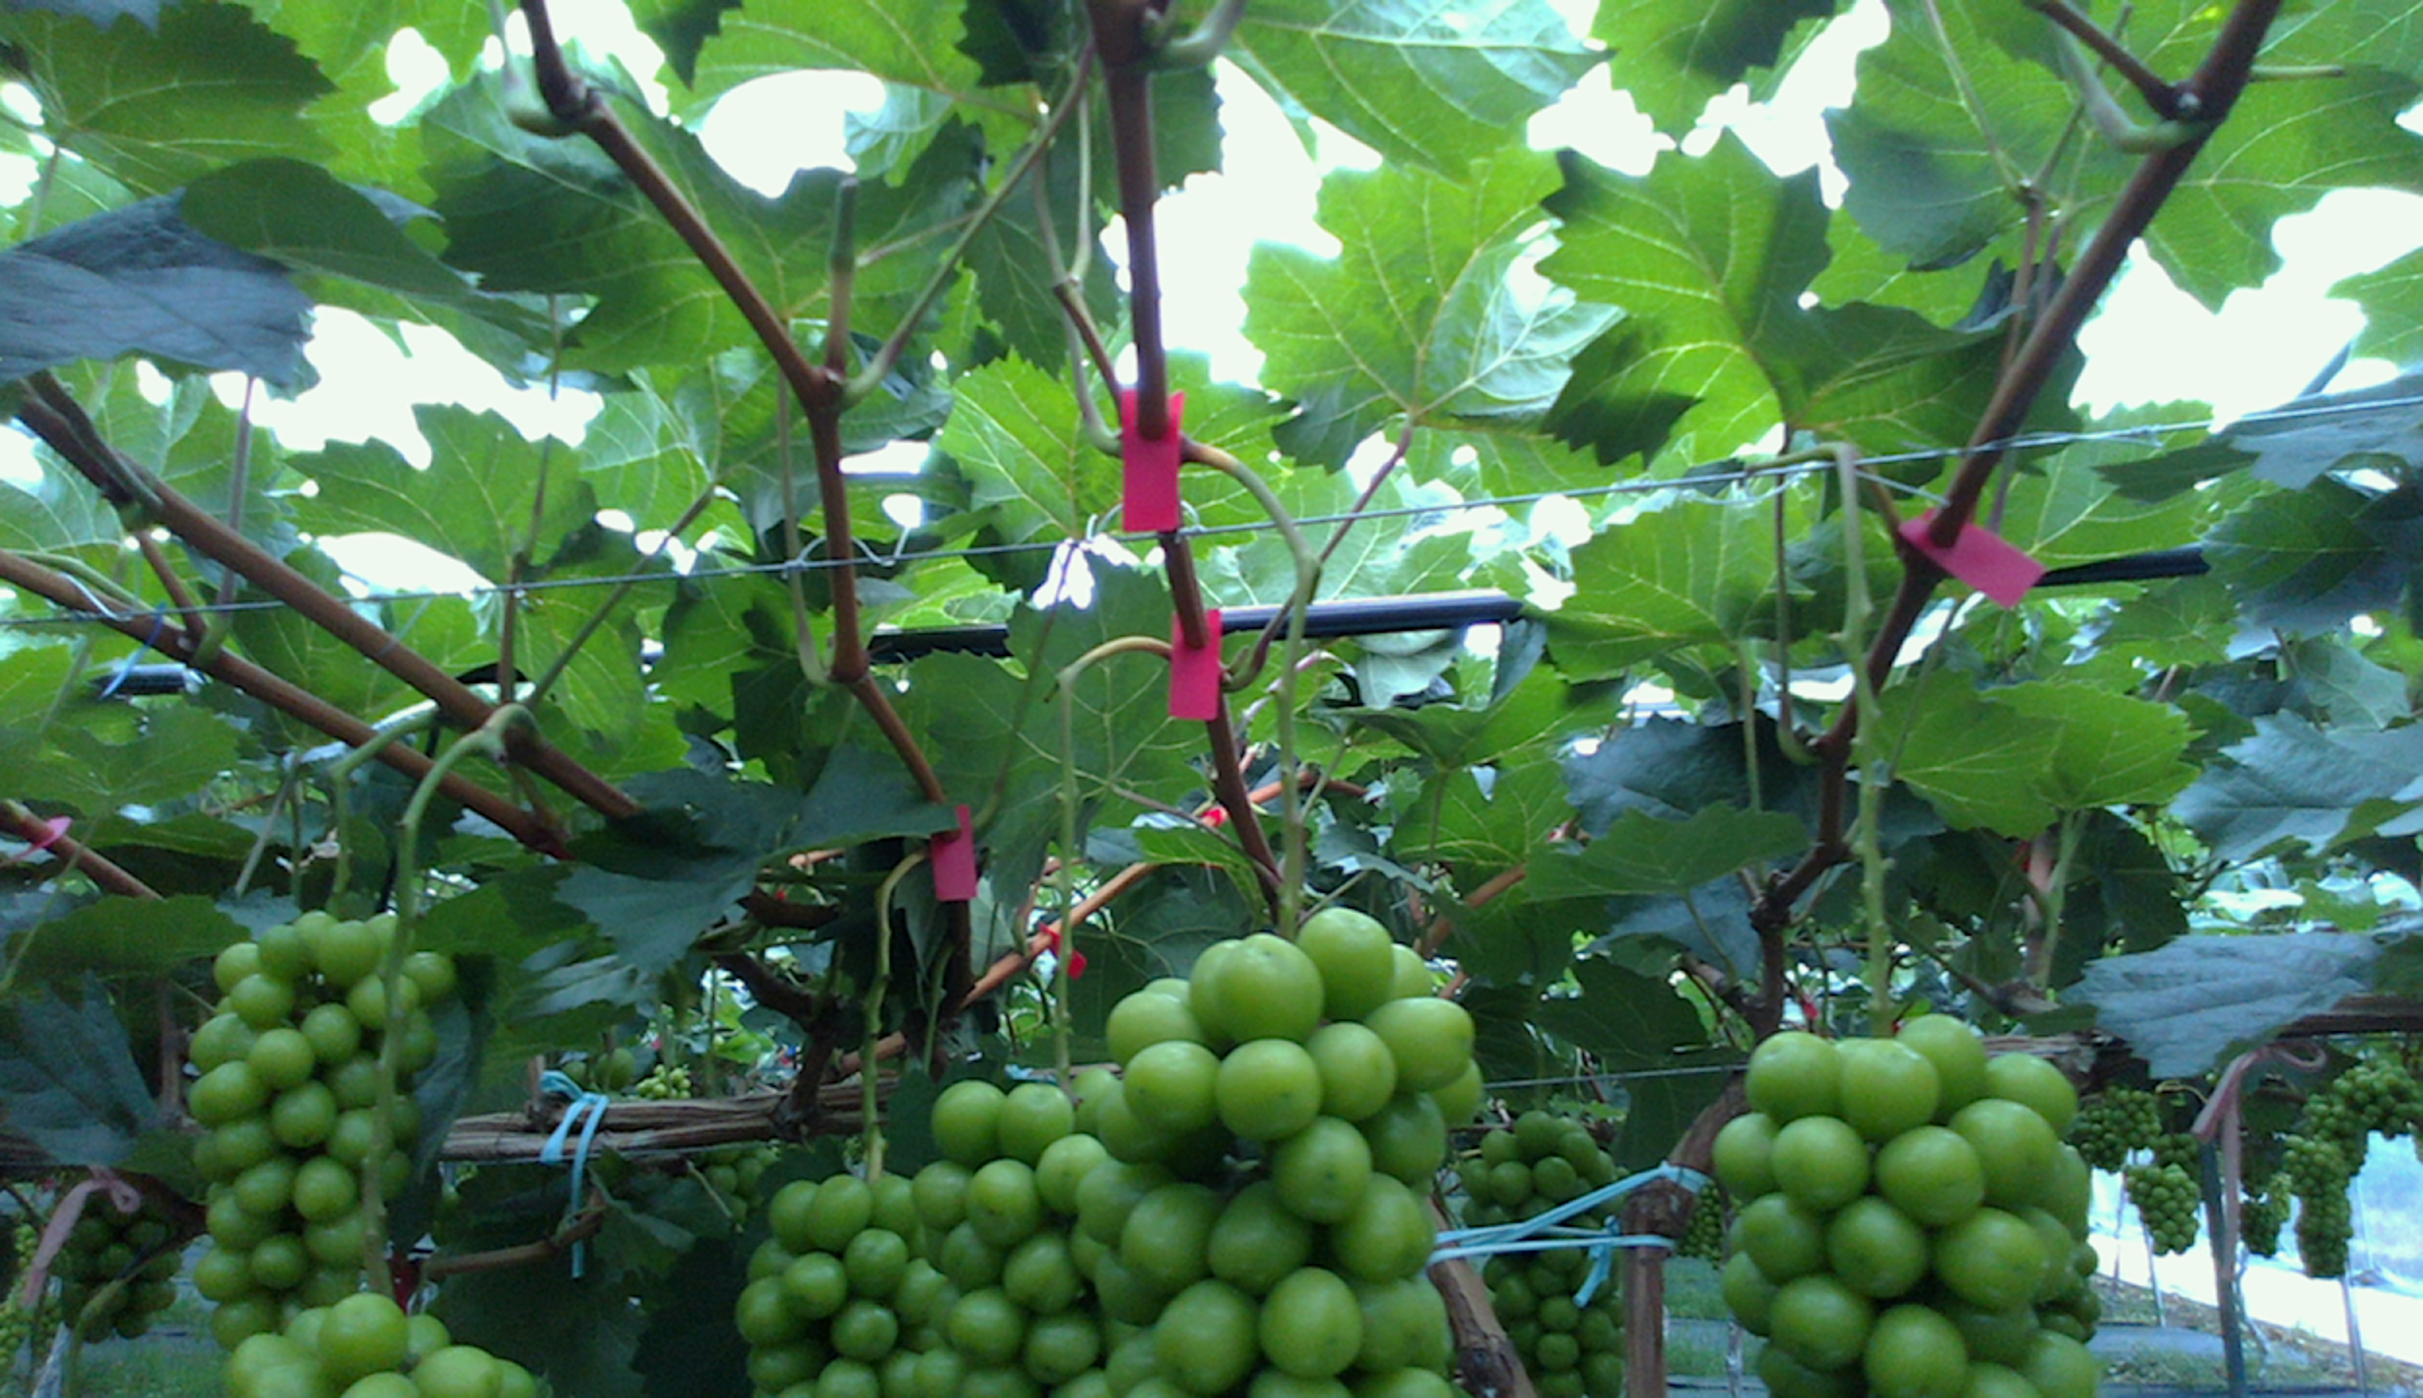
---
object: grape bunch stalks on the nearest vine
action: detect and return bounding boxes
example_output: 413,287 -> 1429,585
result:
396,705 -> 520,932
1835,456 -> 1893,1035
1056,635 -> 1169,1111
1184,437 -> 1312,944
326,705 -> 443,916
862,847 -> 930,1181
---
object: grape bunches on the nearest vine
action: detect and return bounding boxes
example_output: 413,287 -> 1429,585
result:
225,1293 -> 536,1396
1074,909 -> 1485,1394
1712,1014 -> 2099,1396
913,1070 -> 1138,1396
186,911 -> 454,1355
734,1175 -> 947,1396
